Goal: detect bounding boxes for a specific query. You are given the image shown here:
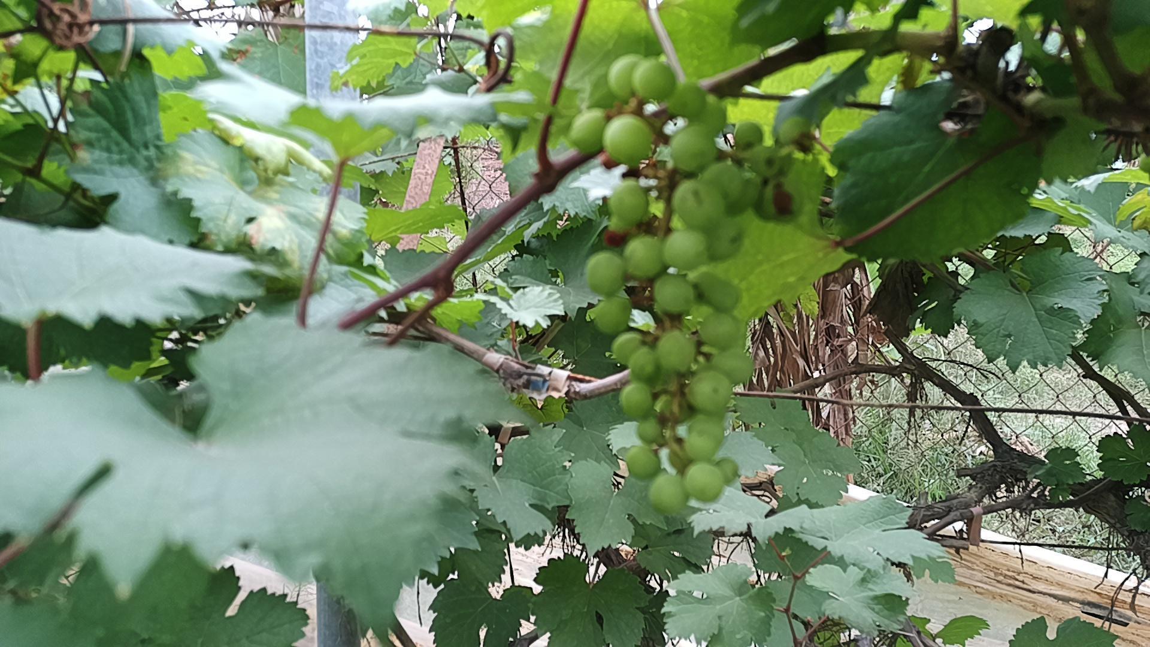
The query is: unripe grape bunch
[570,56,810,512]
